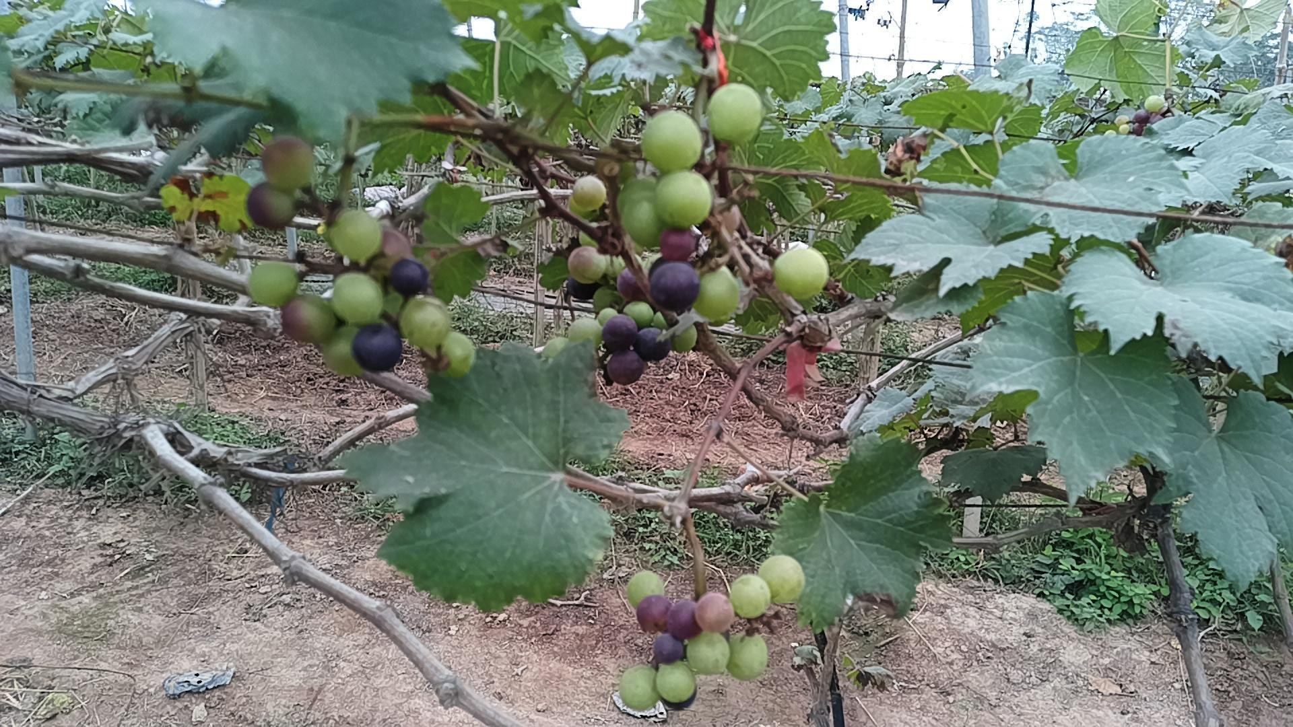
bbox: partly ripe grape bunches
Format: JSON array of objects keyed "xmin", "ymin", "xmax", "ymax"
[
  {"xmin": 242, "ymin": 133, "xmax": 482, "ymax": 382},
  {"xmin": 1103, "ymin": 93, "xmax": 1175, "ymax": 136},
  {"xmin": 538, "ymin": 83, "xmax": 834, "ymax": 394},
  {"xmin": 612, "ymin": 556, "xmax": 806, "ymax": 719}
]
